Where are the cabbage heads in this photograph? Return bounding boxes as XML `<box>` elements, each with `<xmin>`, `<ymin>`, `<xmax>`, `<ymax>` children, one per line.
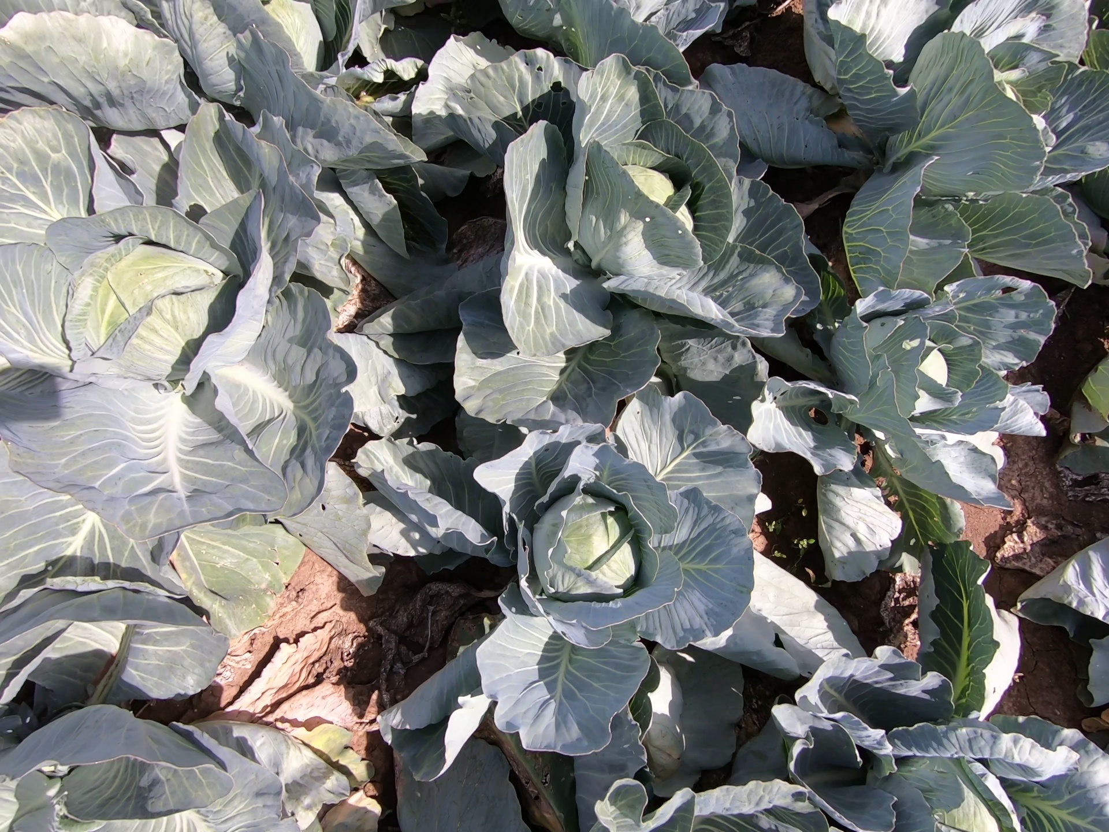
<box><xmin>908</xmin><ymin>71</ymin><xmax>1024</xmax><ymax>190</ymax></box>
<box><xmin>576</xmin><ymin>160</ymin><xmax>695</xmax><ymax>275</ymax></box>
<box><xmin>178</xmin><ymin>1</ymin><xmax>328</xmax><ymax>104</ymax></box>
<box><xmin>533</xmin><ymin>491</ymin><xmax>647</xmax><ymax>607</ymax></box>
<box><xmin>869</xmin><ymin>335</ymin><xmax>948</xmax><ymax>407</ymax></box>
<box><xmin>61</xmin><ymin>240</ymin><xmax>244</xmax><ymax>382</ymax></box>
<box><xmin>886</xmin><ymin>742</ymin><xmax>1024</xmax><ymax>831</ymax></box>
